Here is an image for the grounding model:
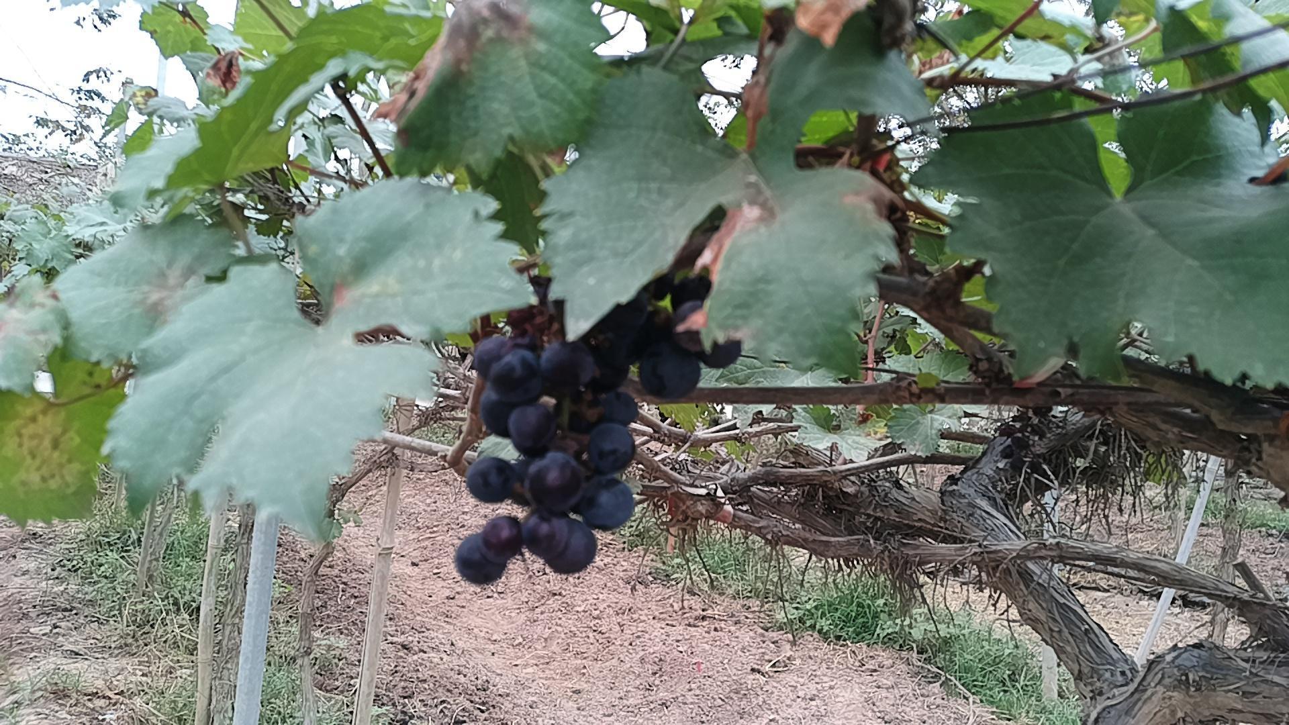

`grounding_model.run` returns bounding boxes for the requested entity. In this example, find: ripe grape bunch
[455,273,741,583]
